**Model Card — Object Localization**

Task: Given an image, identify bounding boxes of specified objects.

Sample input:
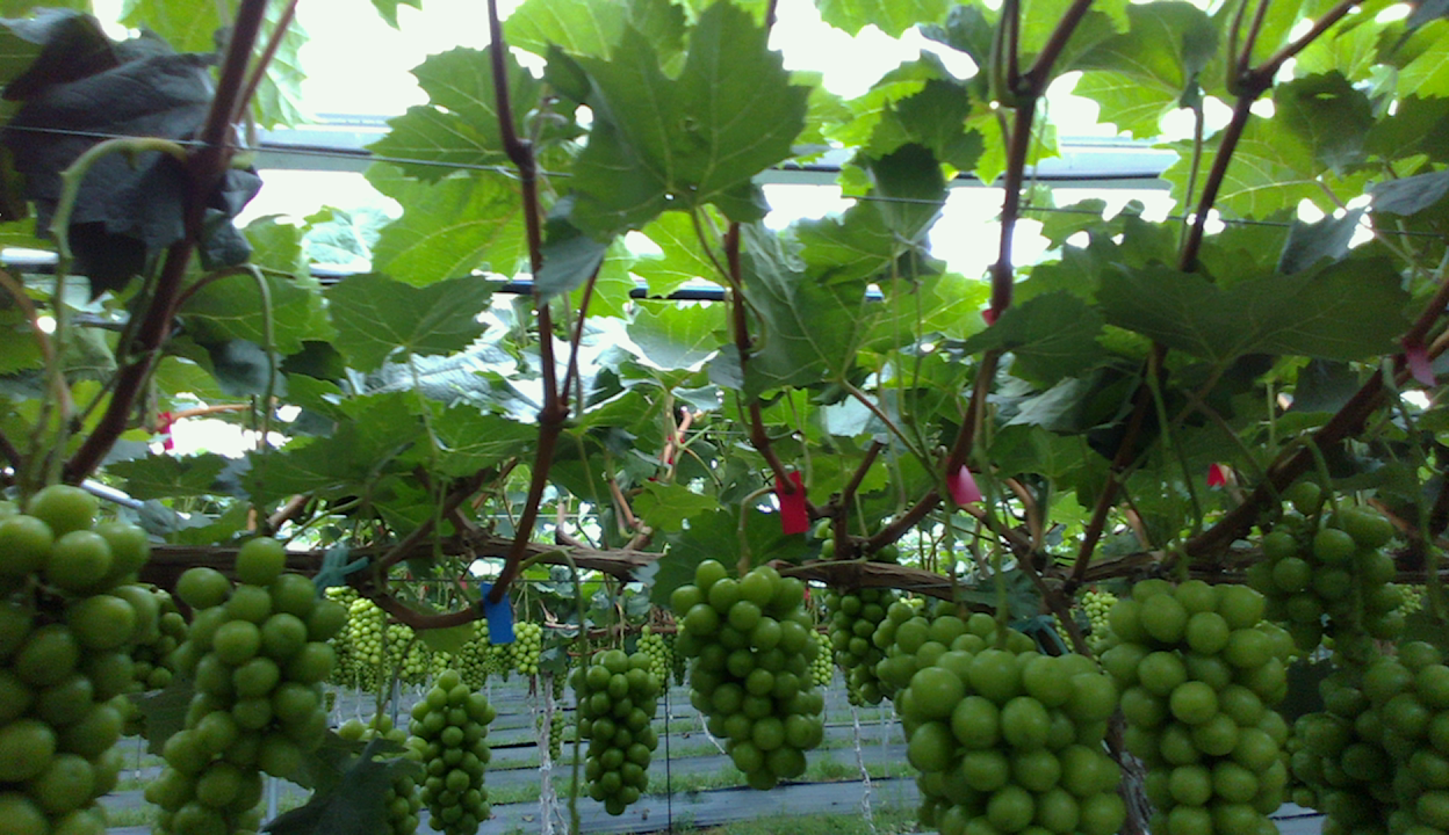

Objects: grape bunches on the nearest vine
[901,648,1125,834]
[152,537,346,834]
[1,484,159,834]
[1104,579,1293,834]
[1290,641,1448,834]
[670,559,826,792]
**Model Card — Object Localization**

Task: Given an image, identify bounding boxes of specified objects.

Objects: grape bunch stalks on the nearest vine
[981,407,1009,651]
[15,137,187,514]
[179,264,277,538]
[737,486,774,581]
[1147,349,1191,582]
